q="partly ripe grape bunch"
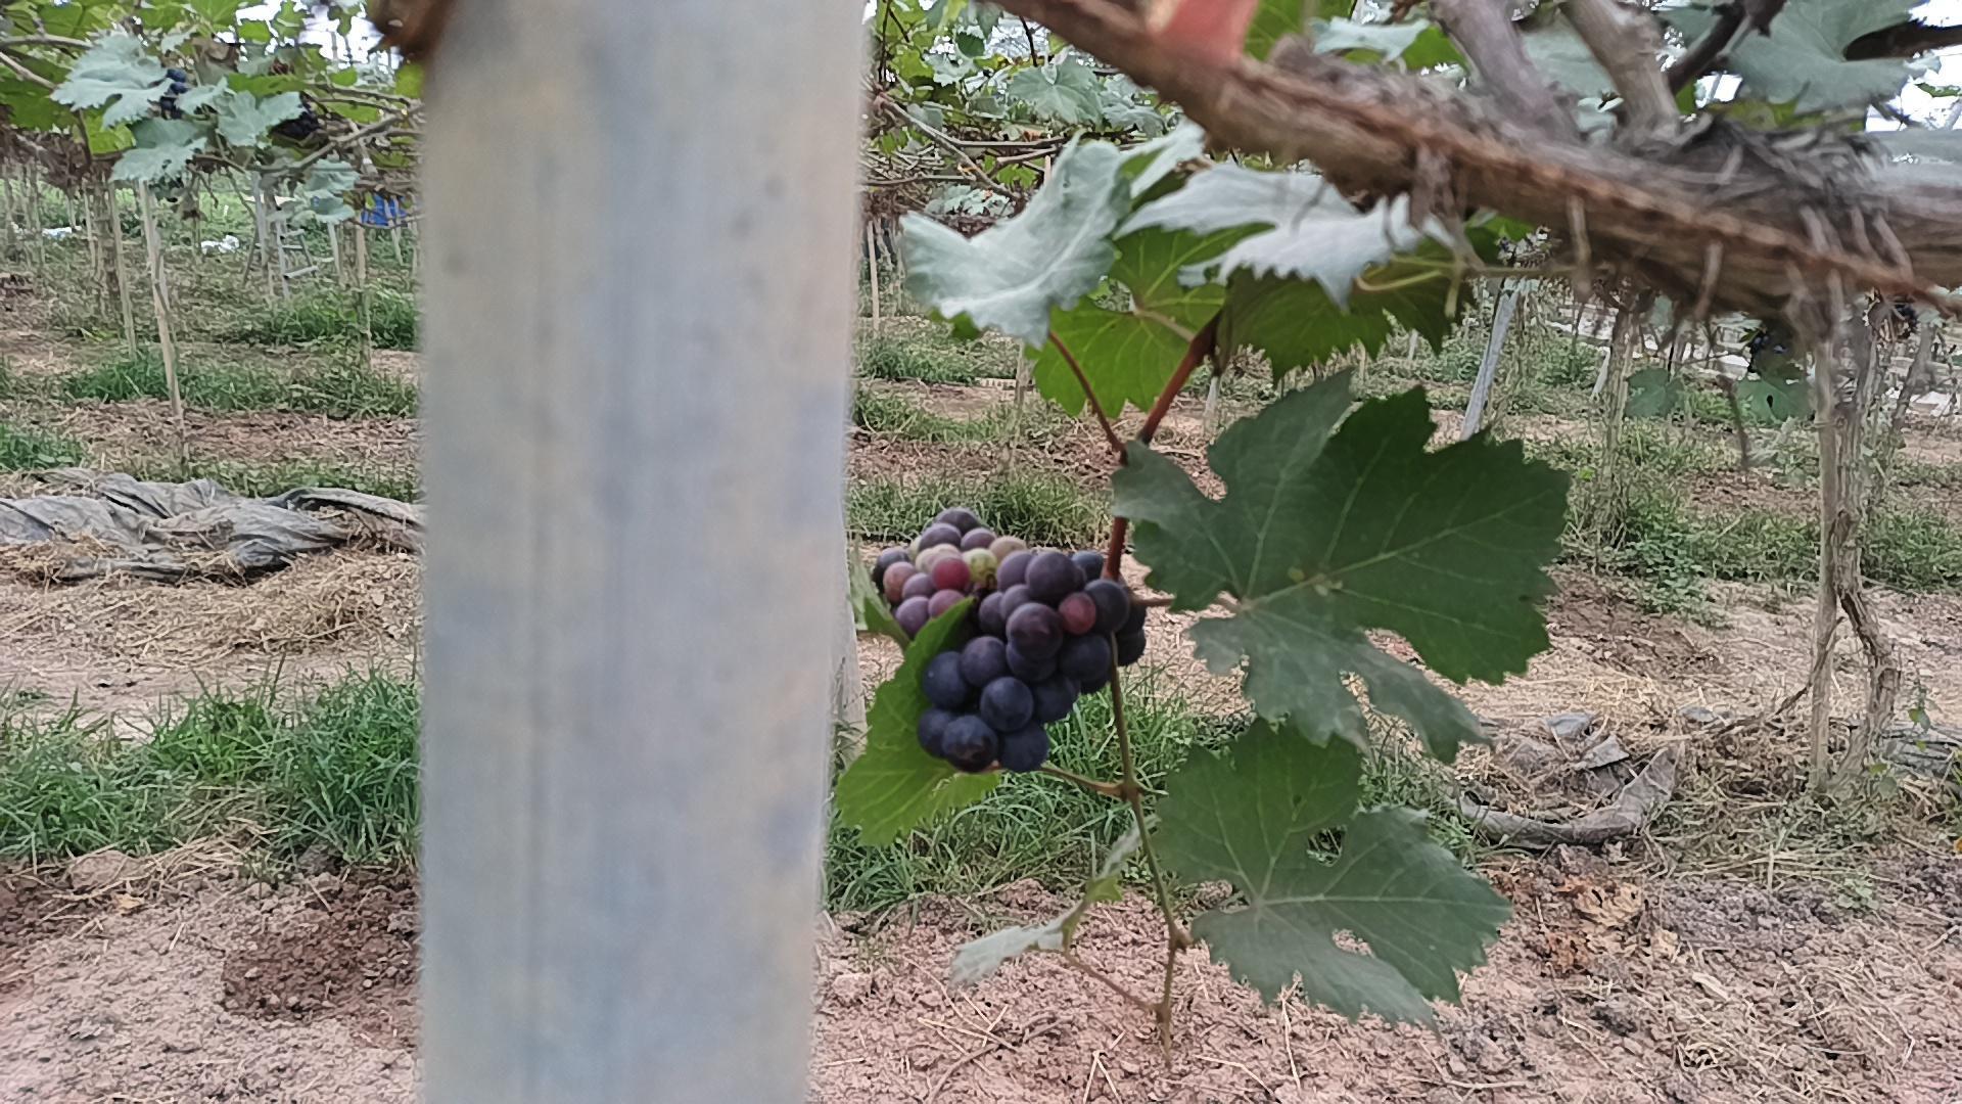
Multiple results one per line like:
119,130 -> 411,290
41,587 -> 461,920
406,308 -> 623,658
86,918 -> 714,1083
871,509 -> 1147,774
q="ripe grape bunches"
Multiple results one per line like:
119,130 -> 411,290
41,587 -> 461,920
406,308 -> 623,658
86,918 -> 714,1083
271,102 -> 323,141
157,68 -> 191,121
